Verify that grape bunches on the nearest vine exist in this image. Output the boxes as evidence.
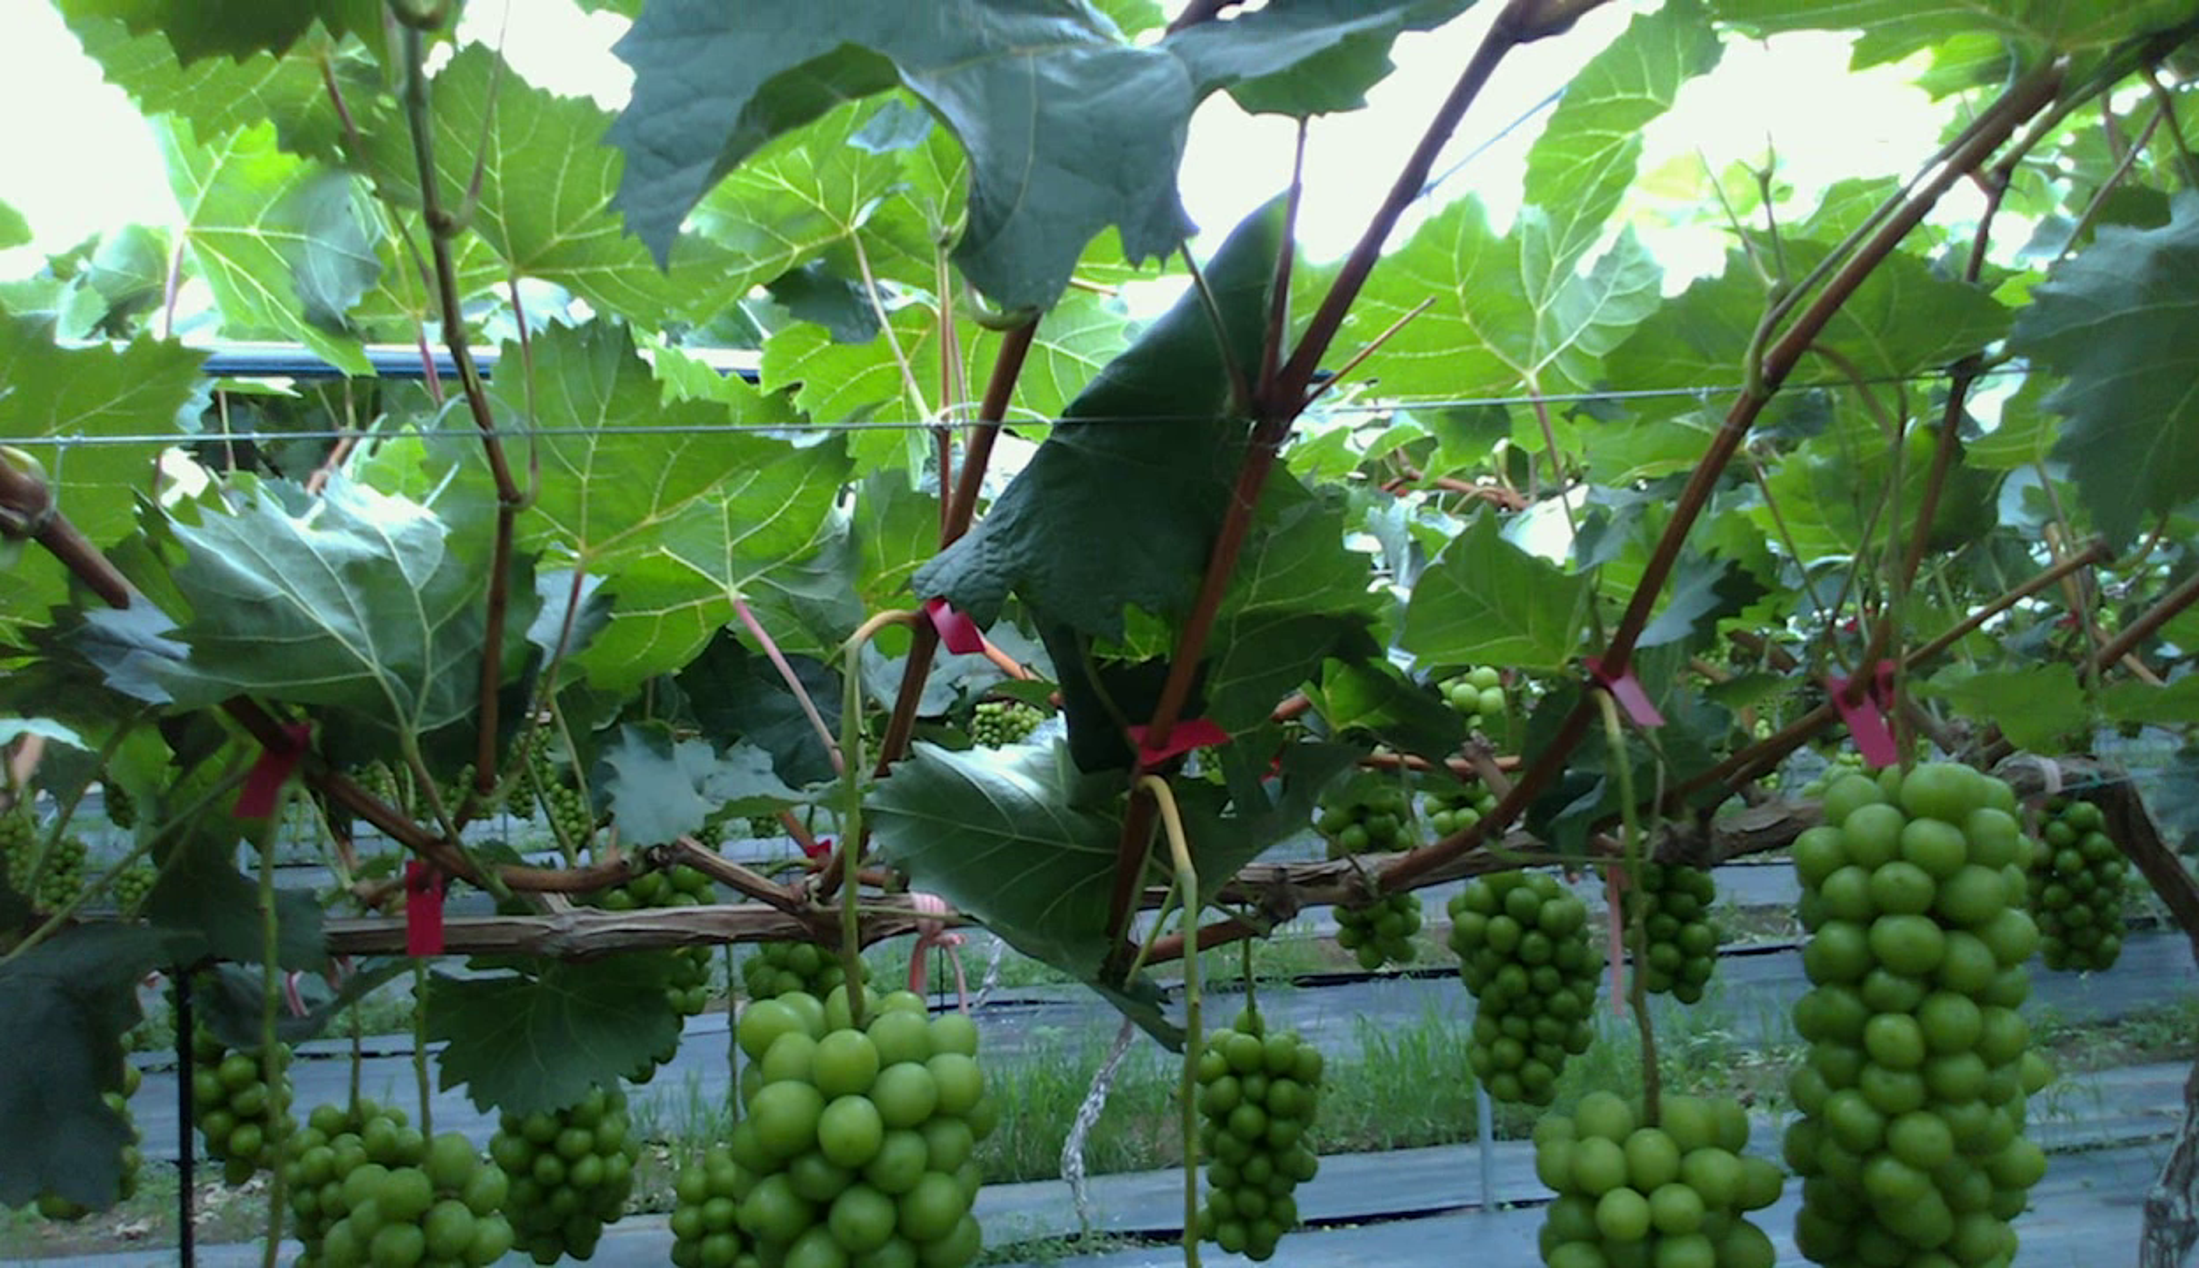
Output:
[315,1131,515,1266]
[1783,763,2053,1266]
[1531,1090,1783,1266]
[728,984,996,1266]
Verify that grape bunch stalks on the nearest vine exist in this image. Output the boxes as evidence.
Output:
[840,609,914,1028]
[1889,386,1915,778]
[414,958,432,1173]
[1591,687,1658,1127]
